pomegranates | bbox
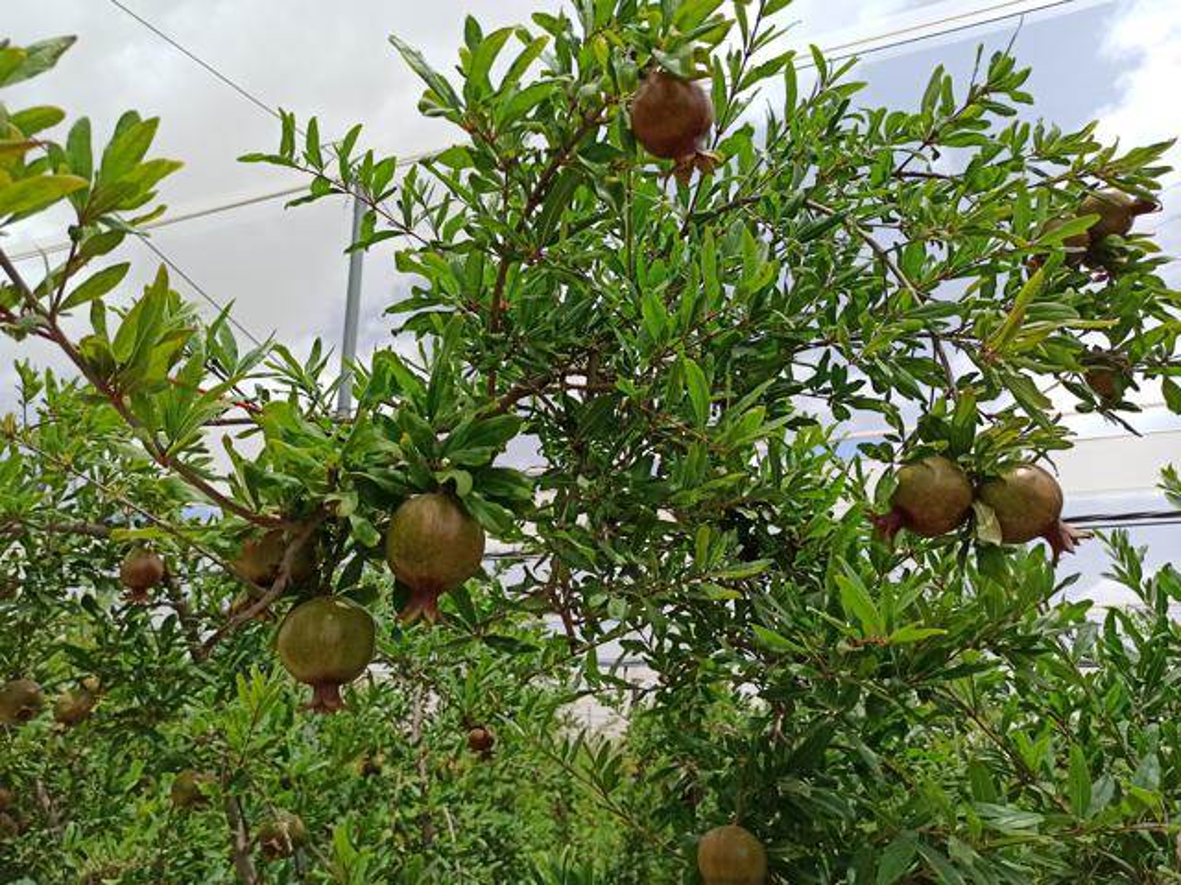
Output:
[865,454,974,546]
[1026,216,1092,271]
[467,726,495,756]
[627,72,725,184]
[0,677,44,726]
[698,822,769,885]
[976,463,1094,568]
[170,769,209,815]
[277,594,376,714]
[231,529,314,621]
[1083,350,1127,395]
[258,817,306,859]
[120,555,164,605]
[384,492,487,627]
[1078,186,1159,240]
[50,690,96,736]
